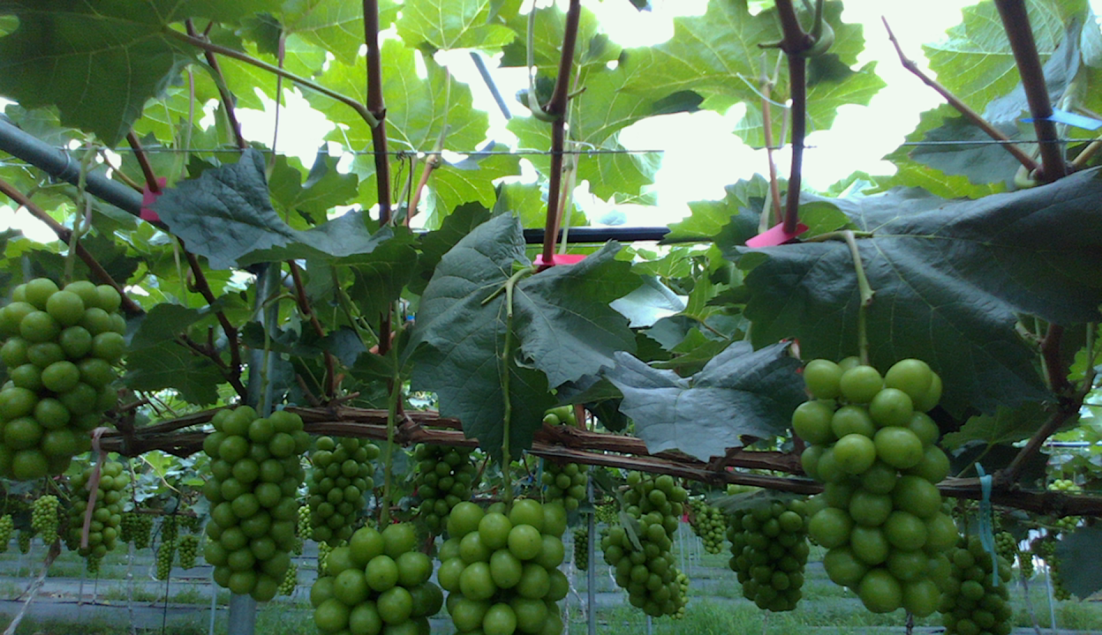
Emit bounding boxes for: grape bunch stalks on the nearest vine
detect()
[806,229,875,365]
[380,300,407,531]
[501,265,537,515]
[64,144,99,287]
[257,293,296,416]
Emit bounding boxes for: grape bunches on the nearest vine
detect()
[437,498,570,634]
[202,406,310,603]
[0,277,127,482]
[791,356,959,617]
[309,523,444,634]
